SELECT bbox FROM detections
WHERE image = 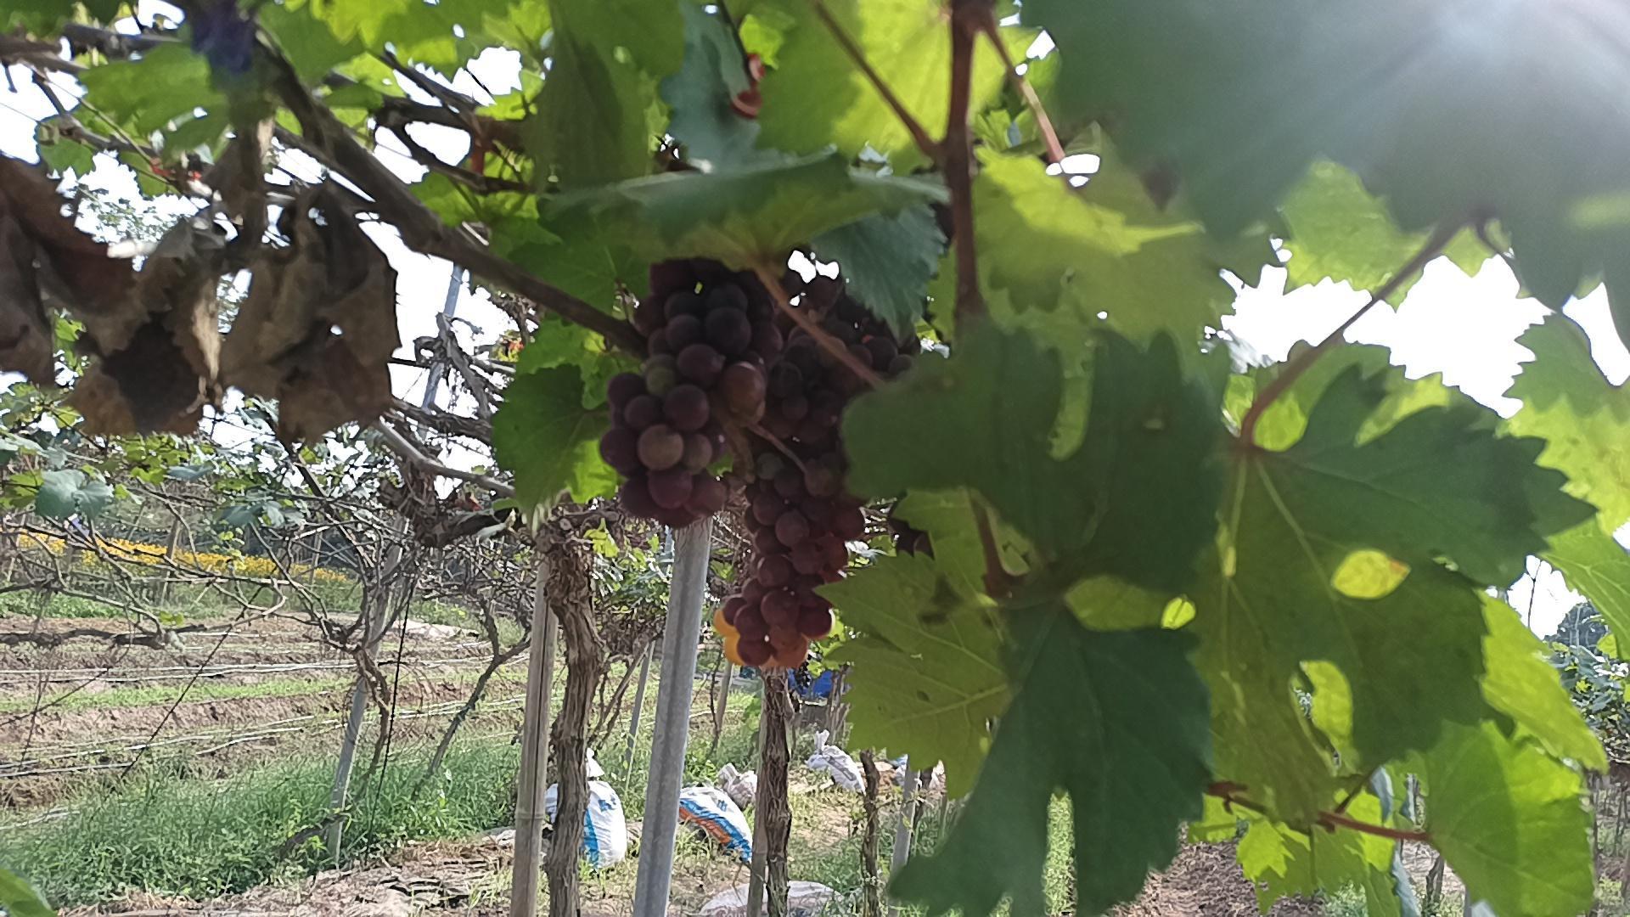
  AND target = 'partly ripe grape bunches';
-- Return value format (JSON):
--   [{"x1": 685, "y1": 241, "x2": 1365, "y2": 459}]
[
  {"x1": 599, "y1": 260, "x2": 781, "y2": 527},
  {"x1": 711, "y1": 268, "x2": 924, "y2": 669}
]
